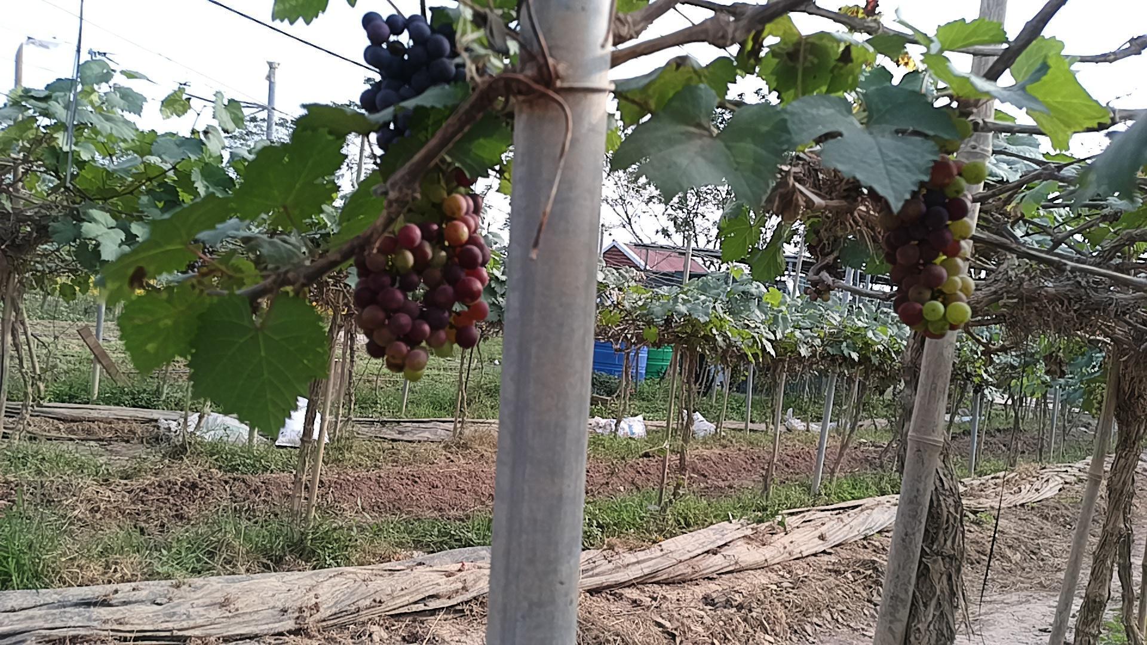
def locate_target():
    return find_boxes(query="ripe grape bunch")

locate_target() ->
[360,12,466,153]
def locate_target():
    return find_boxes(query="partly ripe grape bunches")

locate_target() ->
[878,156,987,339]
[354,195,490,380]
